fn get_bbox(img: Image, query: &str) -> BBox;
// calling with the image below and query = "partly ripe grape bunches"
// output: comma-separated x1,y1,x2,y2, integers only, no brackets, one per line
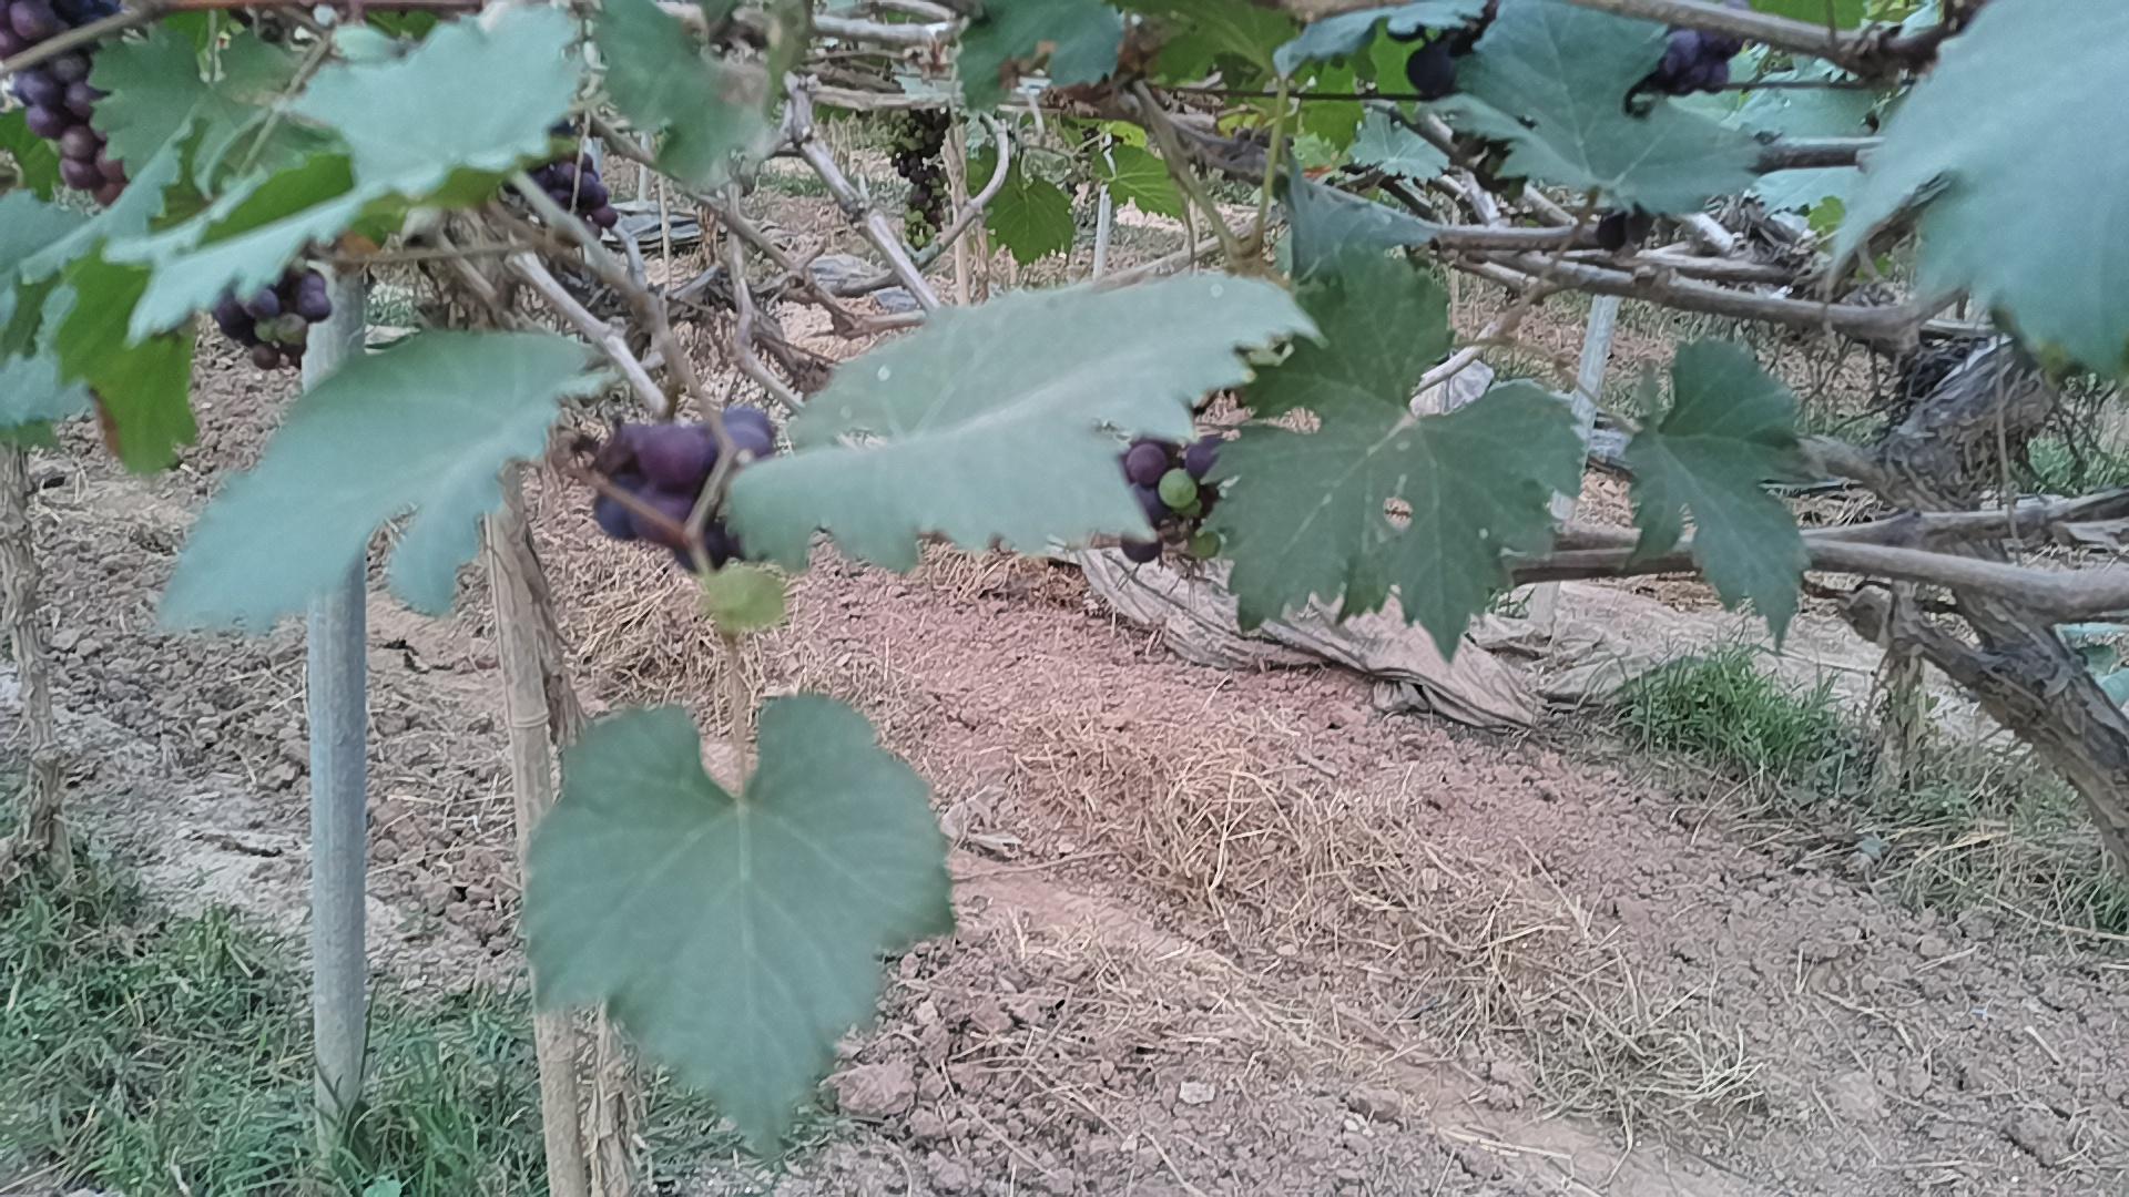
1118,436,1223,563
876,111,954,249
211,267,330,369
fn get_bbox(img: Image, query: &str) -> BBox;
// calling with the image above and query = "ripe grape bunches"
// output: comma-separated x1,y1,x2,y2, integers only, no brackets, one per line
1407,0,1741,249
584,407,774,571
0,0,126,205
510,136,618,247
